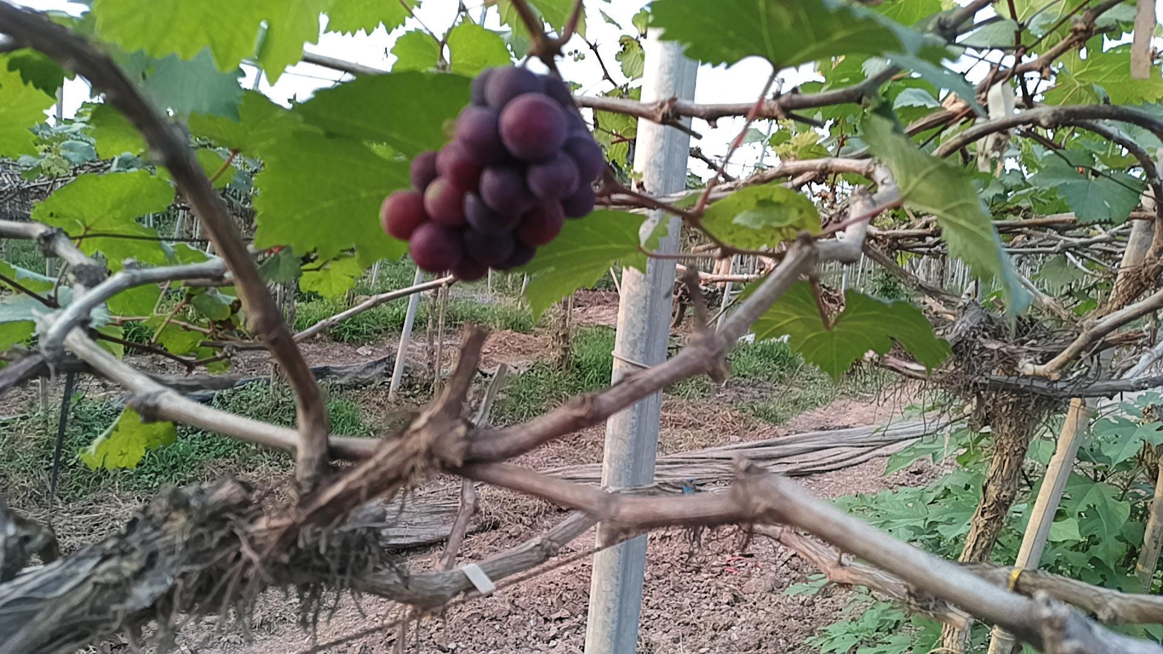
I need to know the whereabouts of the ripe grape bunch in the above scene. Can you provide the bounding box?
[380,65,605,280]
